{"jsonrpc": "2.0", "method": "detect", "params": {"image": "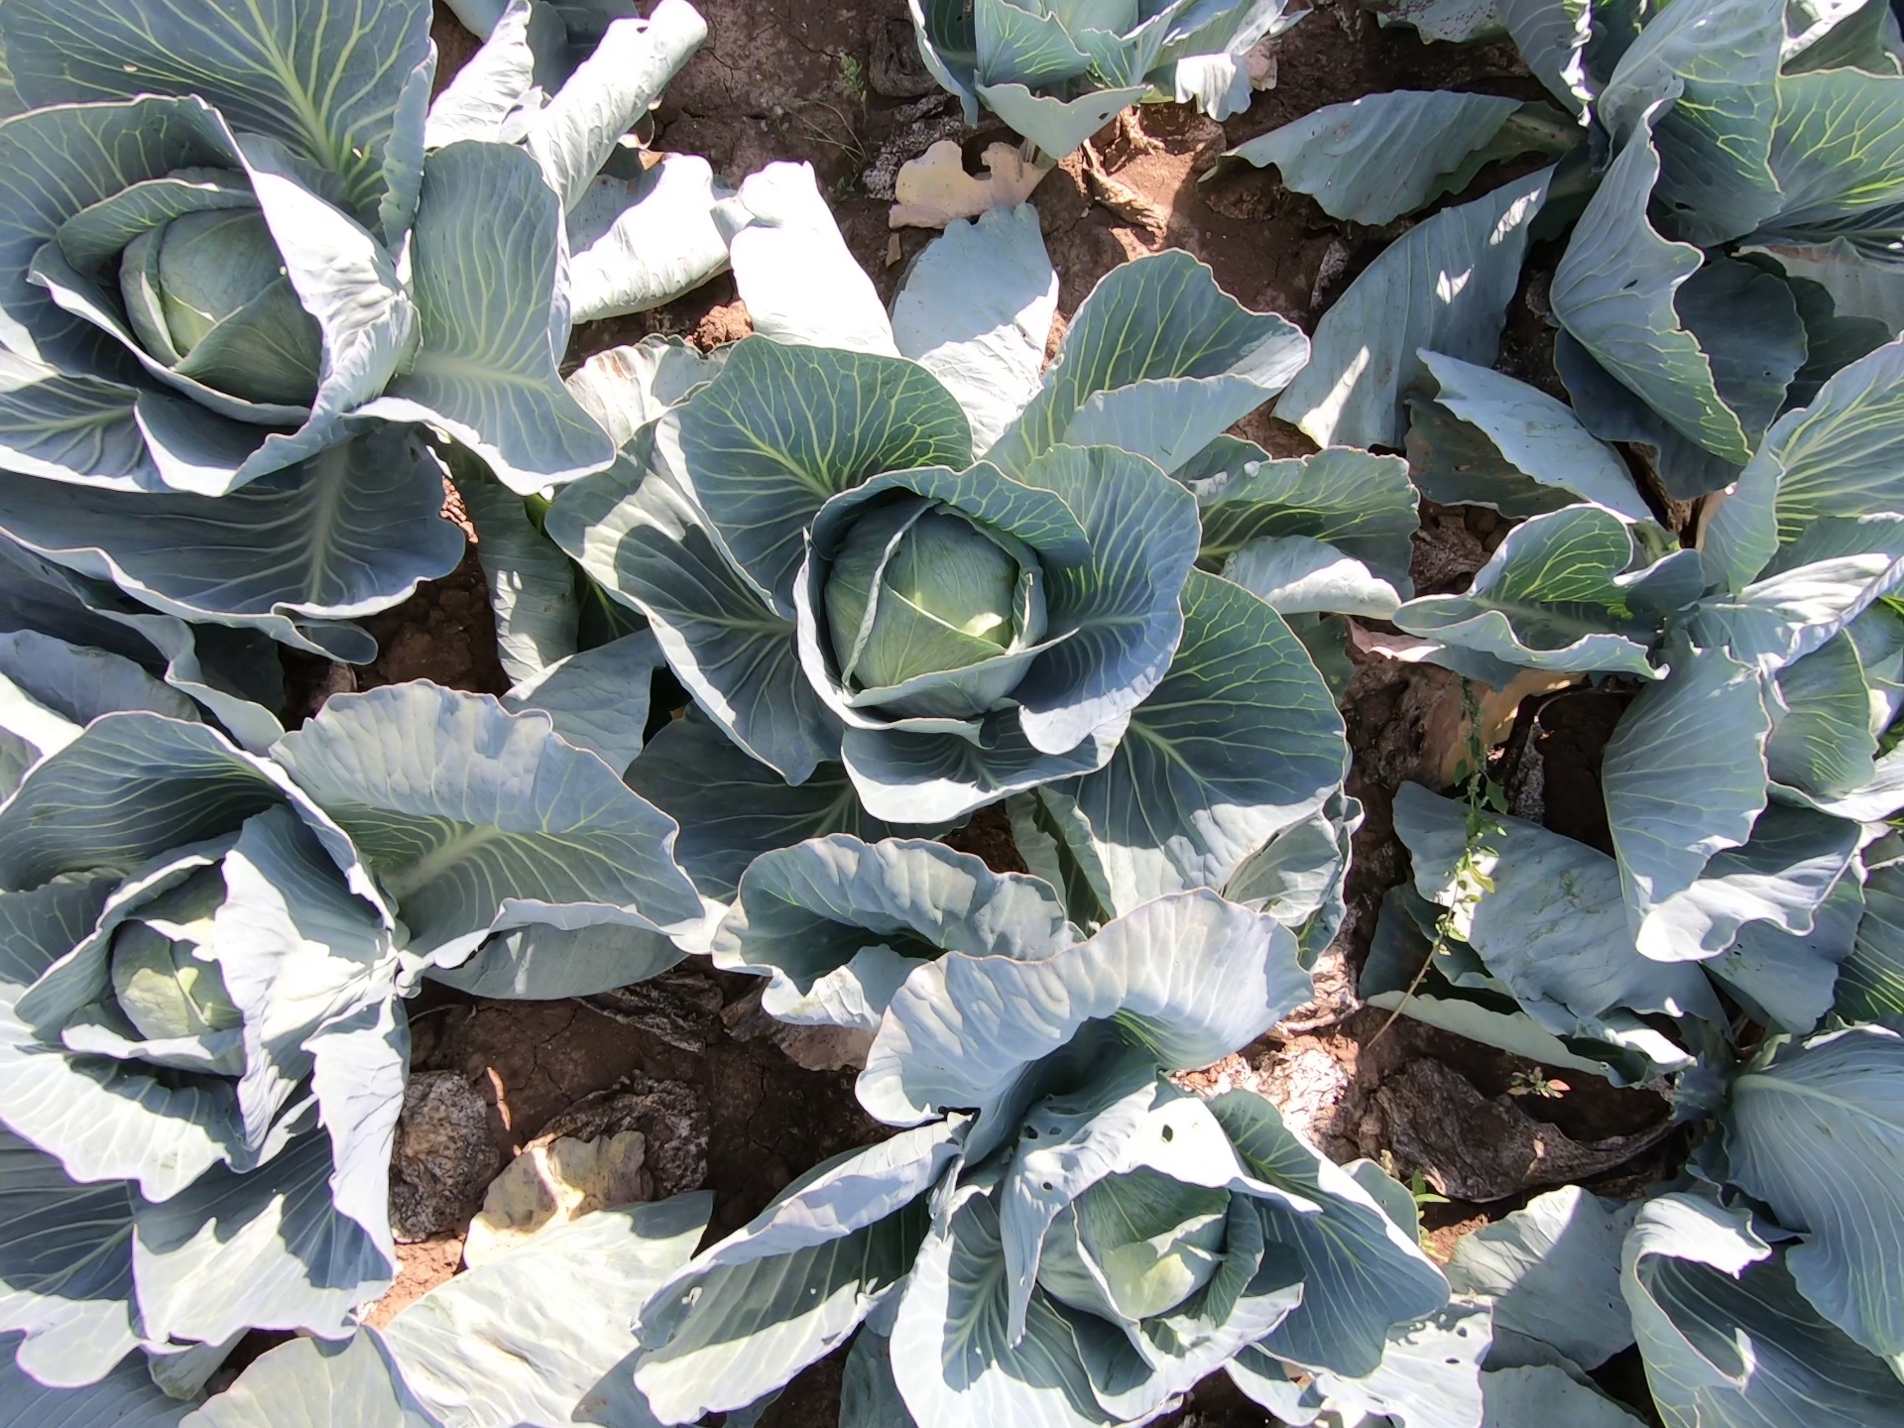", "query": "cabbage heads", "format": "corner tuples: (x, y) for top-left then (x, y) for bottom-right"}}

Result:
(1769, 609), (1901, 762)
(112, 858), (325, 1050)
(115, 190), (356, 398)
(1019, 1100), (1230, 1316)
(1004, 2), (1136, 77)
(825, 492), (1048, 707)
